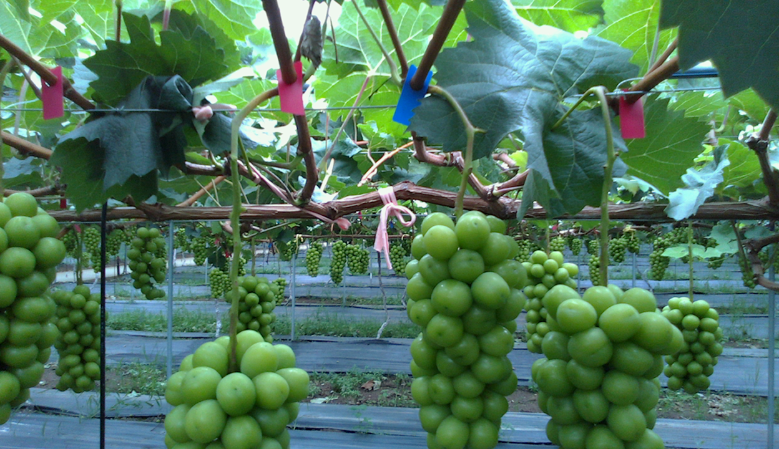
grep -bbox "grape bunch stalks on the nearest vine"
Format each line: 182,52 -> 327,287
426,85 -> 474,222
0,59 -> 17,202
597,85 -> 614,287
228,85 -> 279,374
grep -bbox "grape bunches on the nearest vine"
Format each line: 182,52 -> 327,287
531,284 -> 684,448
404,210 -> 527,448
0,191 -> 67,425
164,329 -> 308,448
